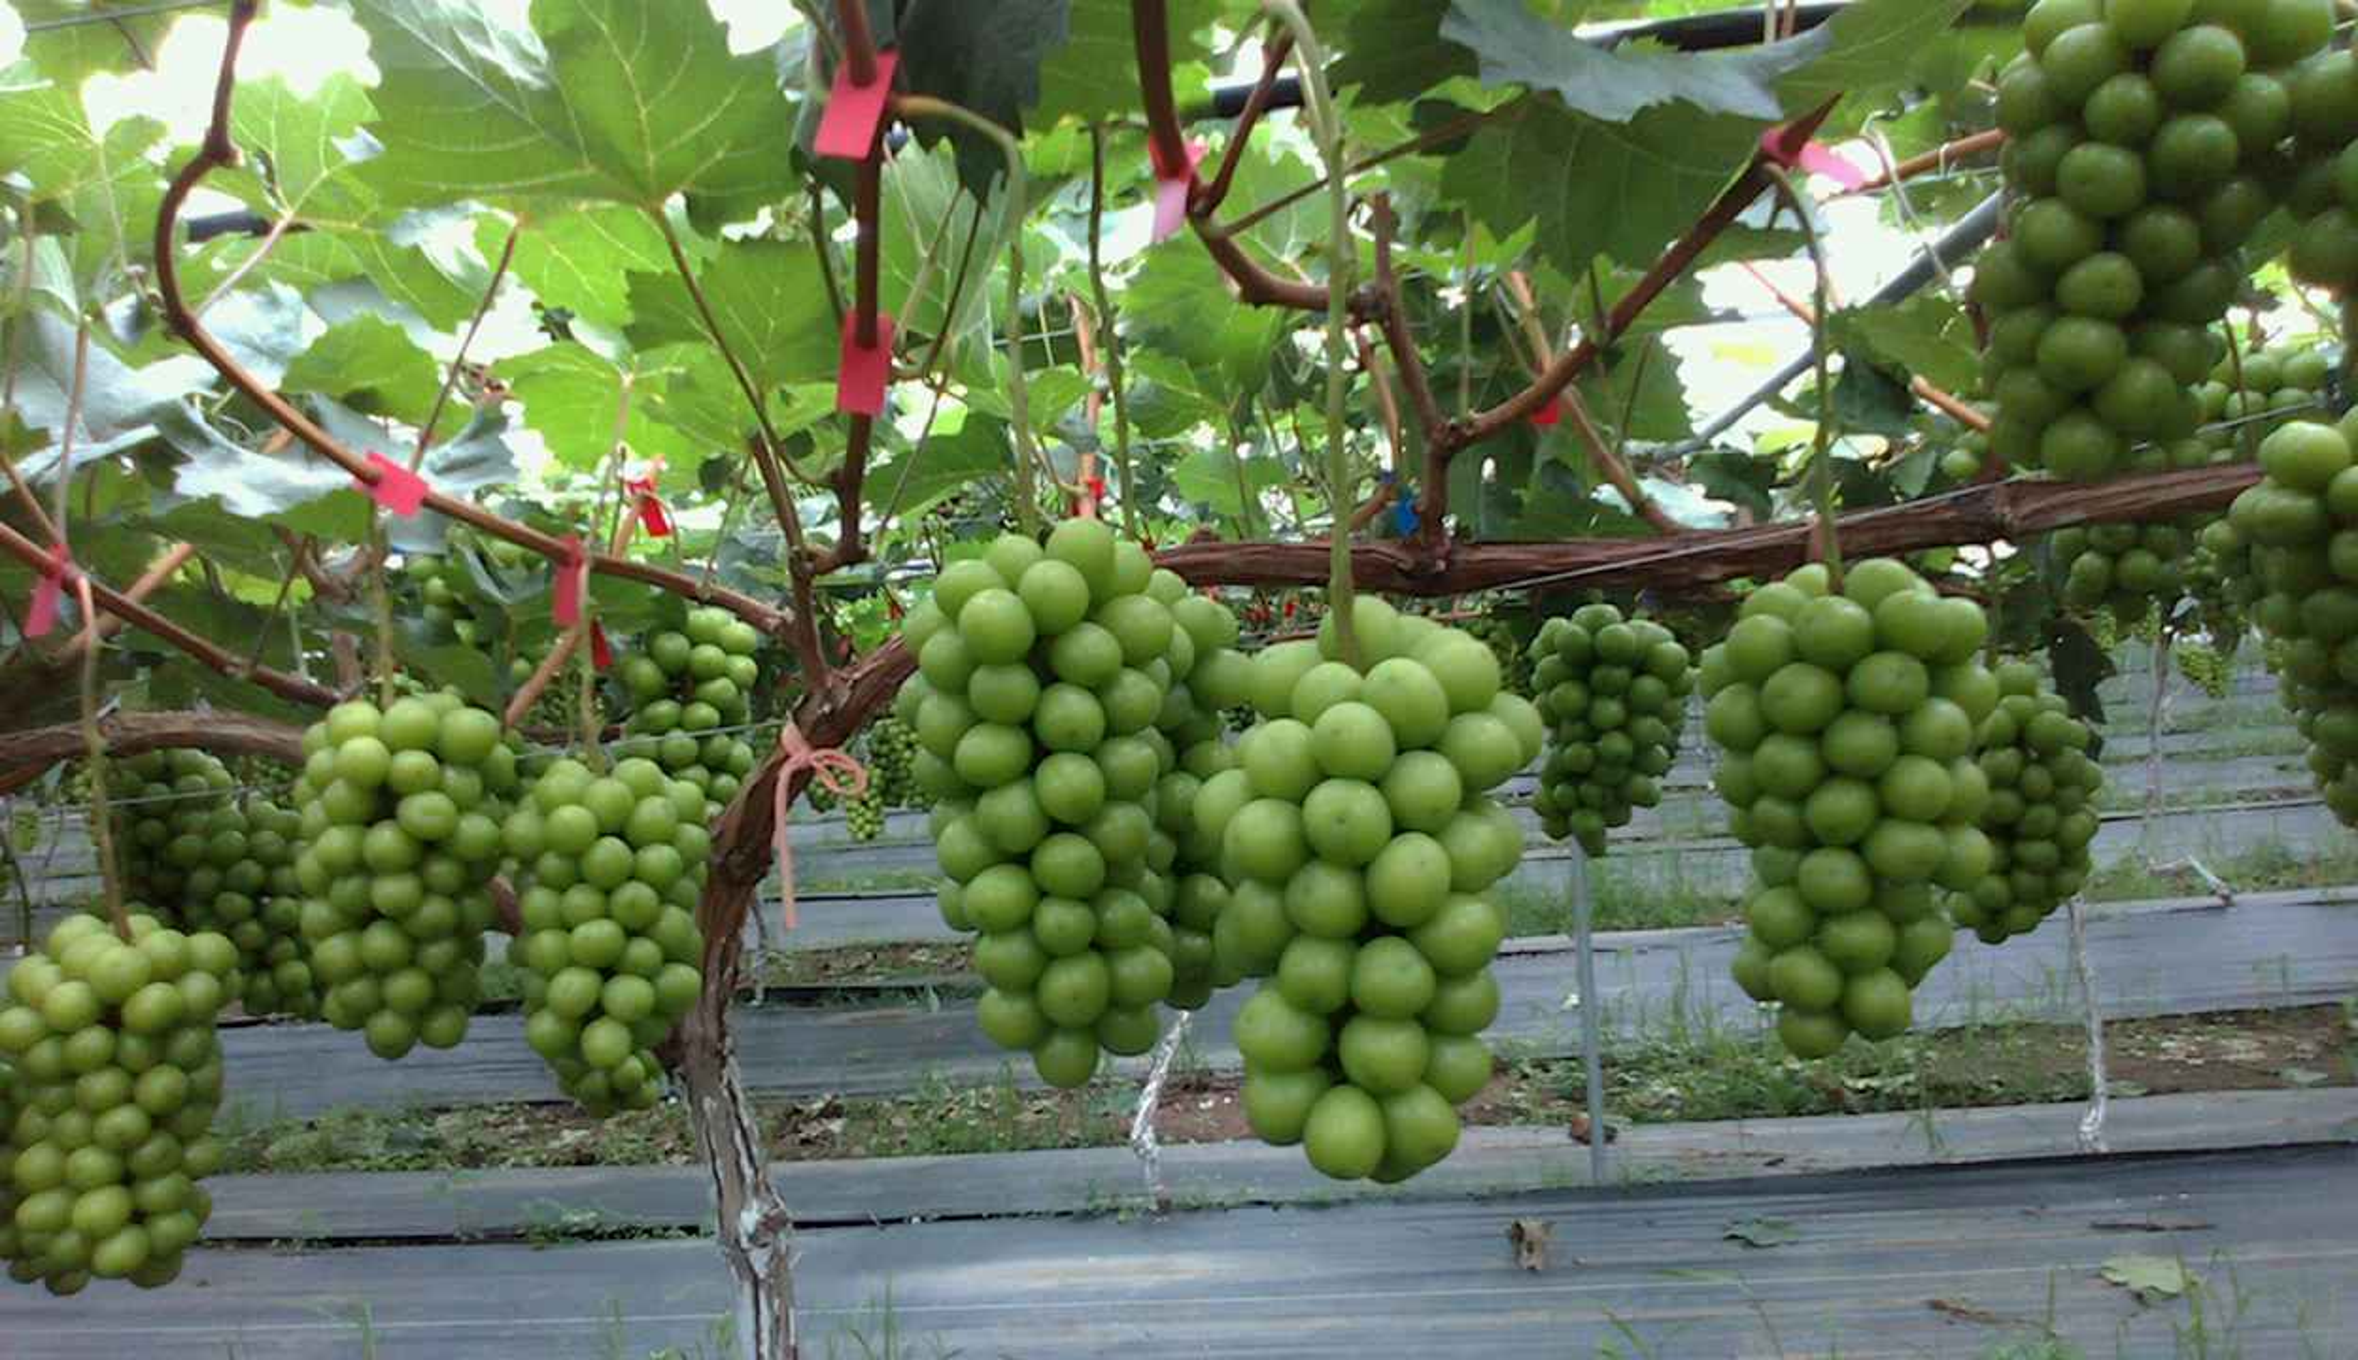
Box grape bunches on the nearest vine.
[1194,595,1544,1182]
[2230,408,2356,759]
[1145,567,1256,1011]
[293,691,520,1062]
[897,518,1175,1088]
[504,757,712,1118]
[1700,557,1999,1060]
[0,912,242,1290]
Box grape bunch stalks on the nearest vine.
[1256,0,1368,678]
[367,499,395,710]
[1088,117,1149,544]
[578,565,607,776]
[1759,162,1844,595]
[897,94,1037,544]
[77,574,132,941]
